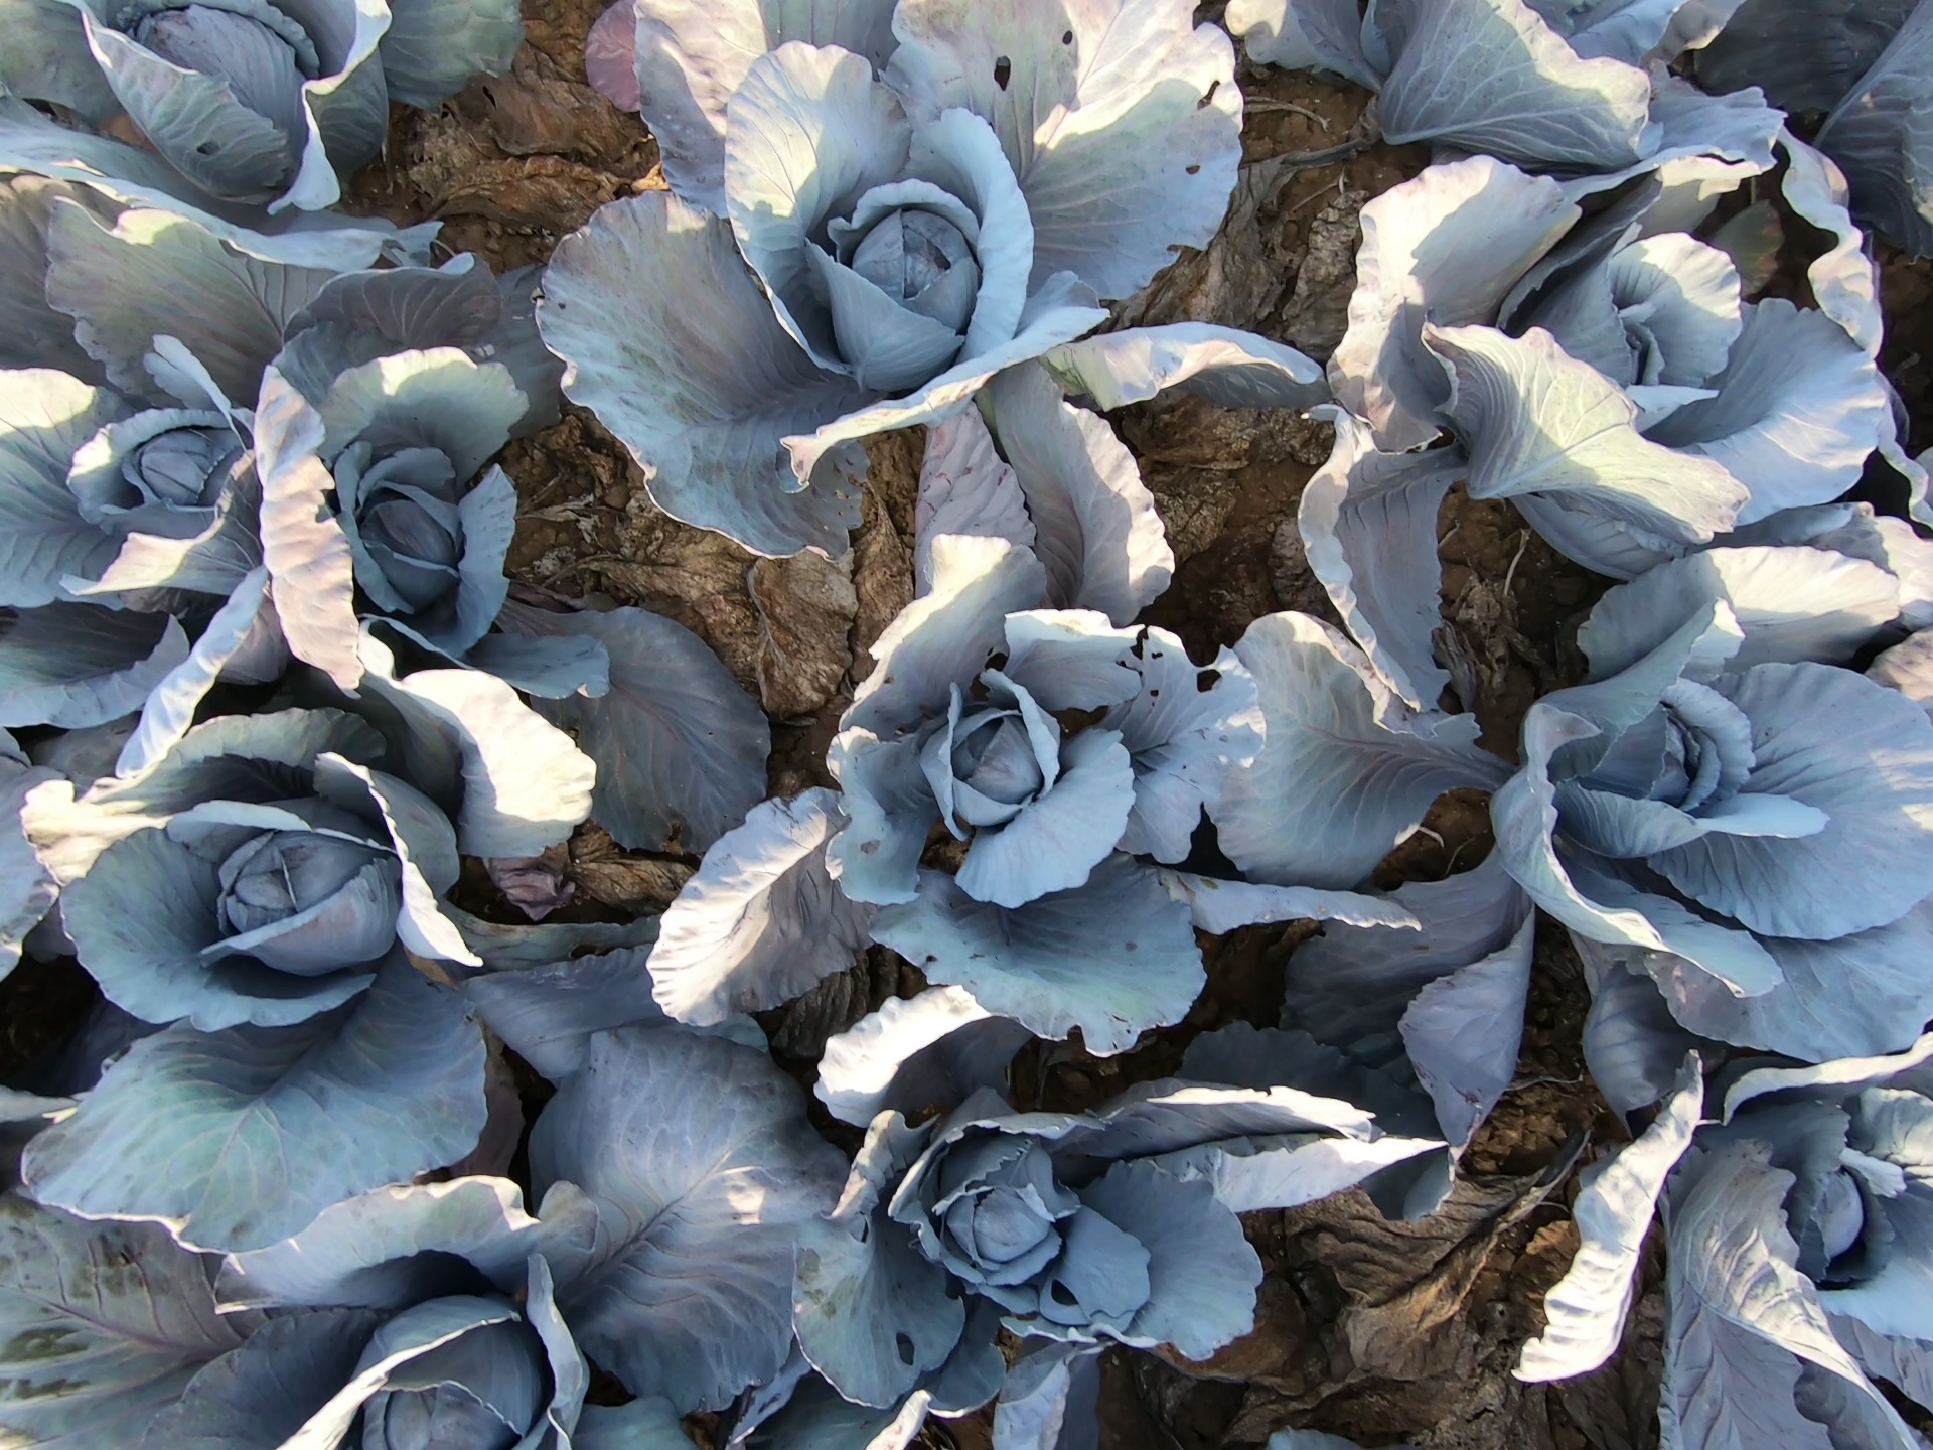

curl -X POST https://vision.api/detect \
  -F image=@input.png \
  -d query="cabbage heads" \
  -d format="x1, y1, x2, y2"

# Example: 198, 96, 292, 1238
851, 211, 973, 361
353, 488, 459, 594
1558, 692, 1693, 829
940, 710, 1051, 817
951, 1143, 1054, 1263
361, 1307, 537, 1448
1743, 1147, 1862, 1262
1524, 319, 1647, 452
122, 5, 310, 180
221, 814, 402, 978
134, 422, 282, 536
